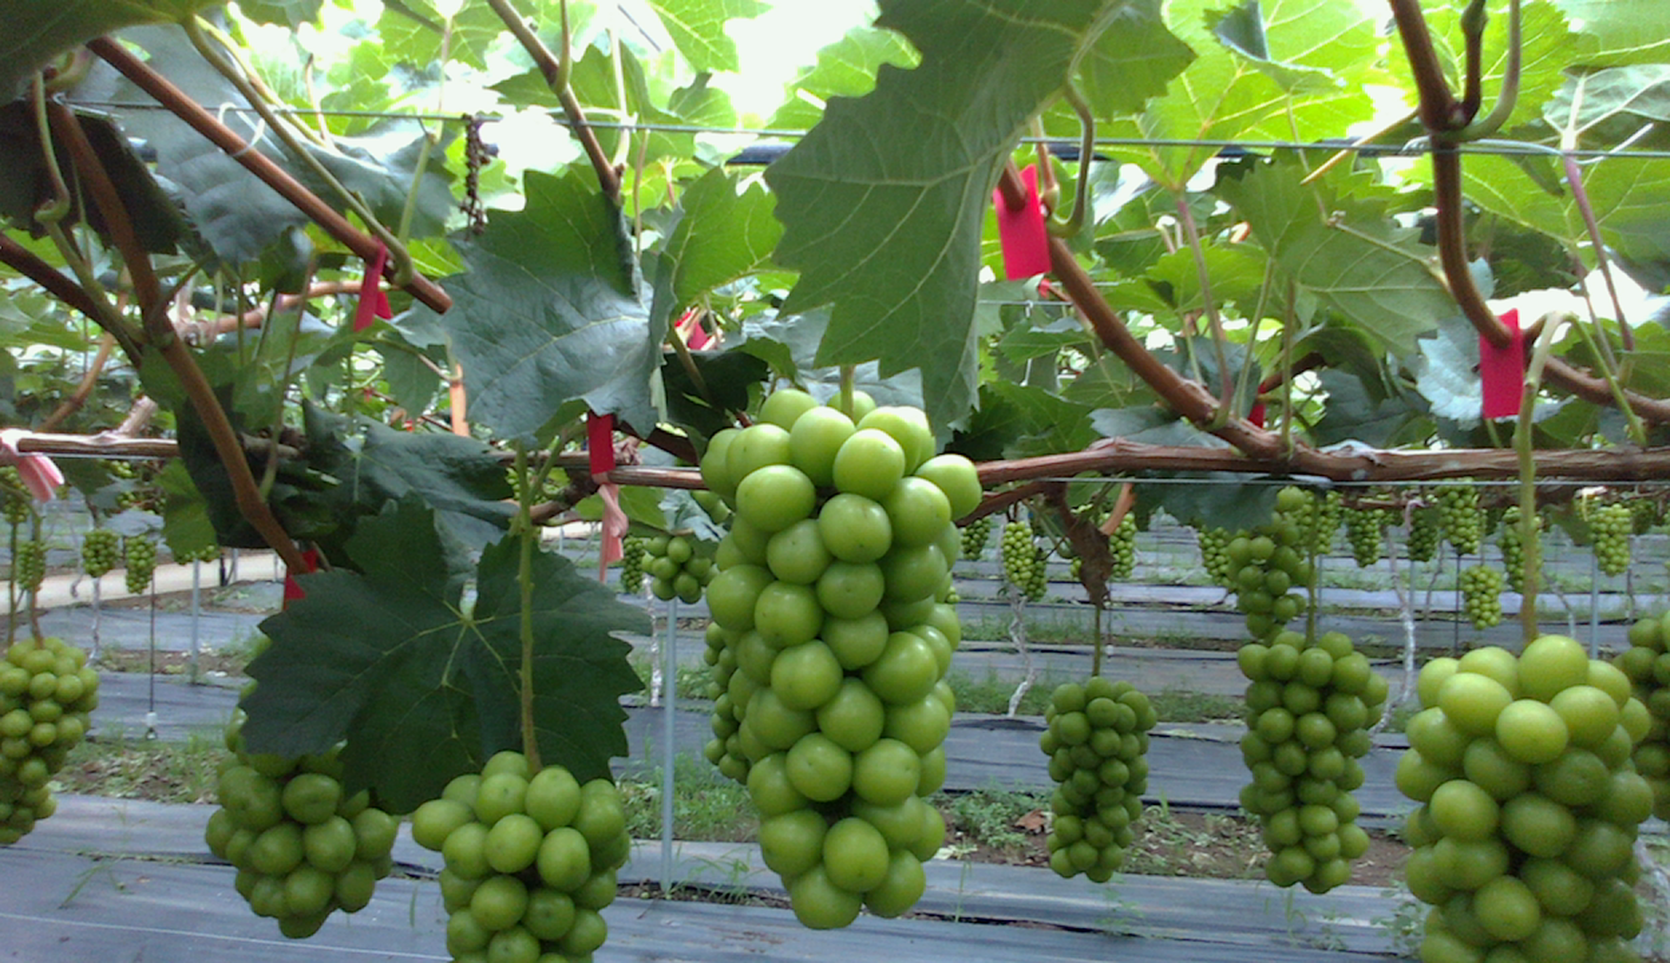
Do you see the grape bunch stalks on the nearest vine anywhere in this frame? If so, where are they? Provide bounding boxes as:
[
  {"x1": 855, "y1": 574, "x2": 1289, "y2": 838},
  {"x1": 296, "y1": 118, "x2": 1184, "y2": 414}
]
[
  {"x1": 1512, "y1": 309, "x2": 1562, "y2": 642},
  {"x1": 0, "y1": 483, "x2": 43, "y2": 647},
  {"x1": 515, "y1": 443, "x2": 542, "y2": 776},
  {"x1": 1092, "y1": 606, "x2": 1101, "y2": 678},
  {"x1": 1305, "y1": 492, "x2": 1319, "y2": 649},
  {"x1": 839, "y1": 365, "x2": 854, "y2": 419}
]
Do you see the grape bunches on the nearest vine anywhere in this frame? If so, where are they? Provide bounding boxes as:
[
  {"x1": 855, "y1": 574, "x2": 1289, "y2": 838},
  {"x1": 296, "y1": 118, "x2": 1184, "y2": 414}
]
[
  {"x1": 1396, "y1": 633, "x2": 1654, "y2": 962},
  {"x1": 1614, "y1": 613, "x2": 1667, "y2": 821},
  {"x1": 1038, "y1": 677, "x2": 1157, "y2": 883},
  {"x1": 701, "y1": 389, "x2": 982, "y2": 931},
  {"x1": 411, "y1": 752, "x2": 630, "y2": 962},
  {"x1": 205, "y1": 708, "x2": 401, "y2": 939},
  {"x1": 1238, "y1": 630, "x2": 1388, "y2": 895},
  {"x1": 0, "y1": 637, "x2": 99, "y2": 844}
]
